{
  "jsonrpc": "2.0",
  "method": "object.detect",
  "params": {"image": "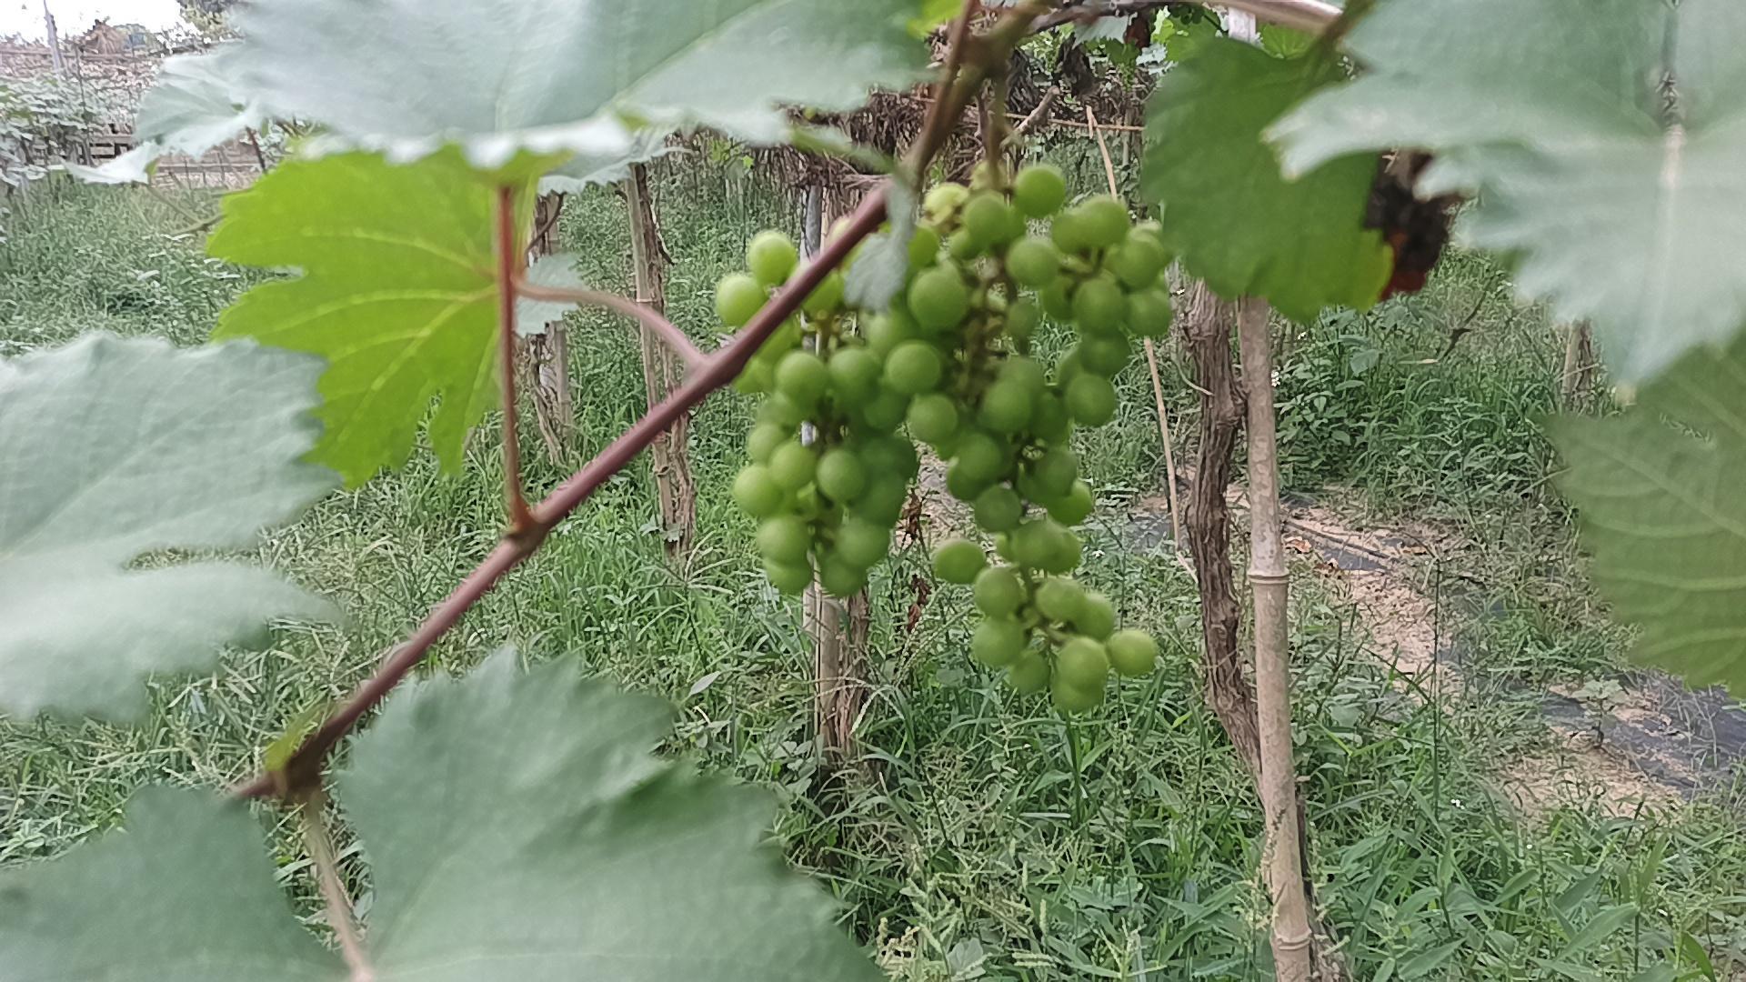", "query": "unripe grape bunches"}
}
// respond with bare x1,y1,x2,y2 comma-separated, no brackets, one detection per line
709,210,941,598
888,156,1173,711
